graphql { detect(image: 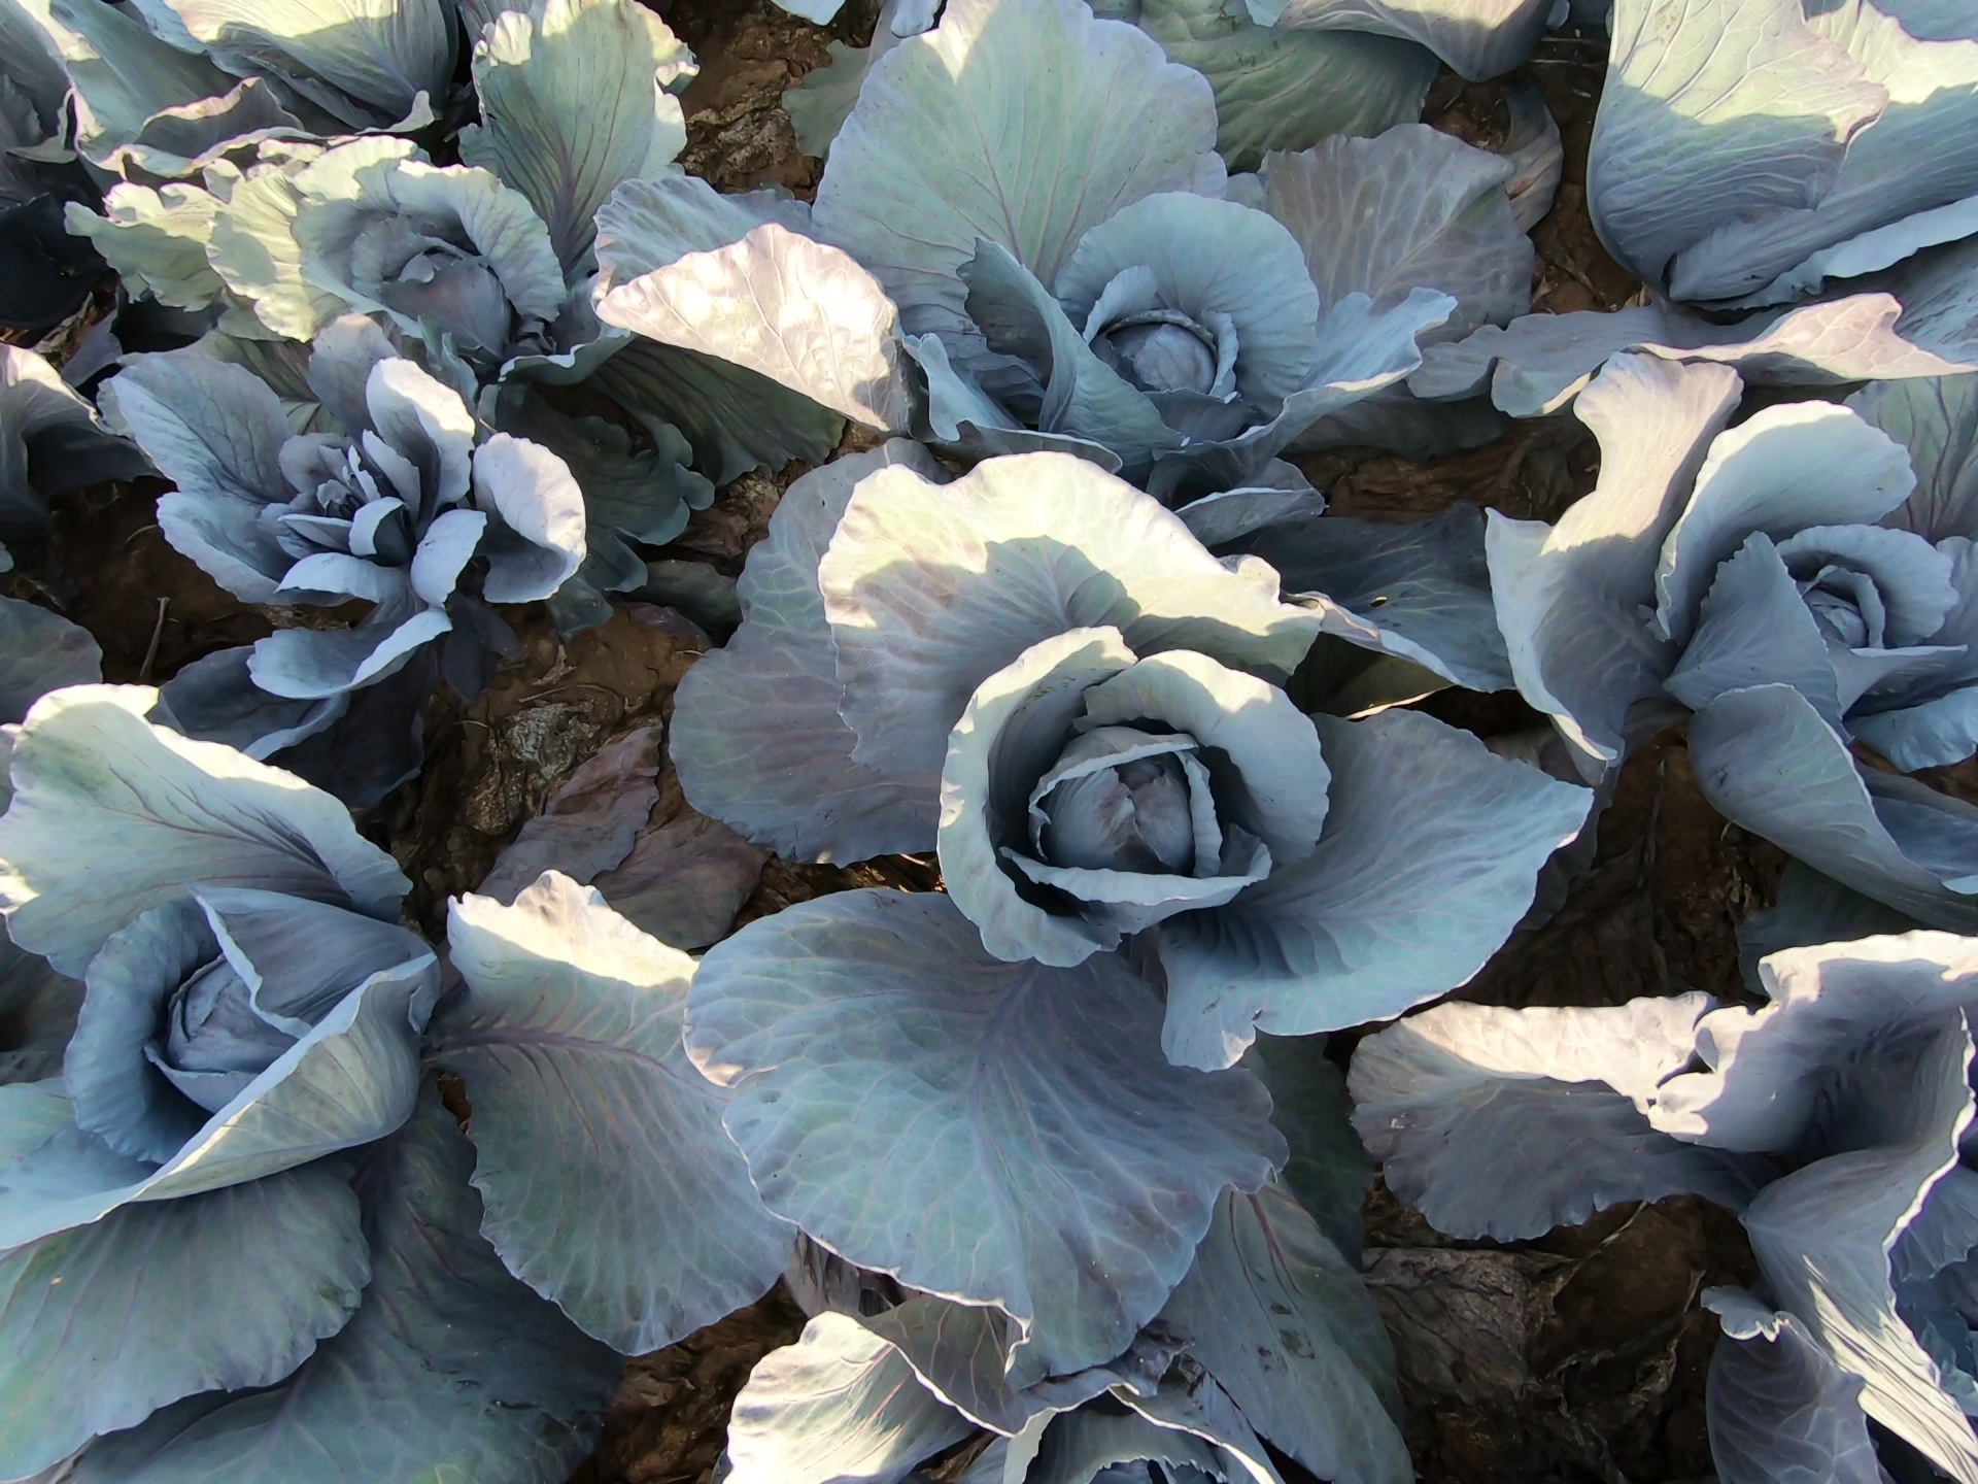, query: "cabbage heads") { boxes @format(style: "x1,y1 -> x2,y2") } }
168,952 -> 375,1122
1733,583 -> 1875,701
398,257 -> 511,367
1107,313 -> 1227,433
1805,1160 -> 1975,1422
1043,730 -> 1195,906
